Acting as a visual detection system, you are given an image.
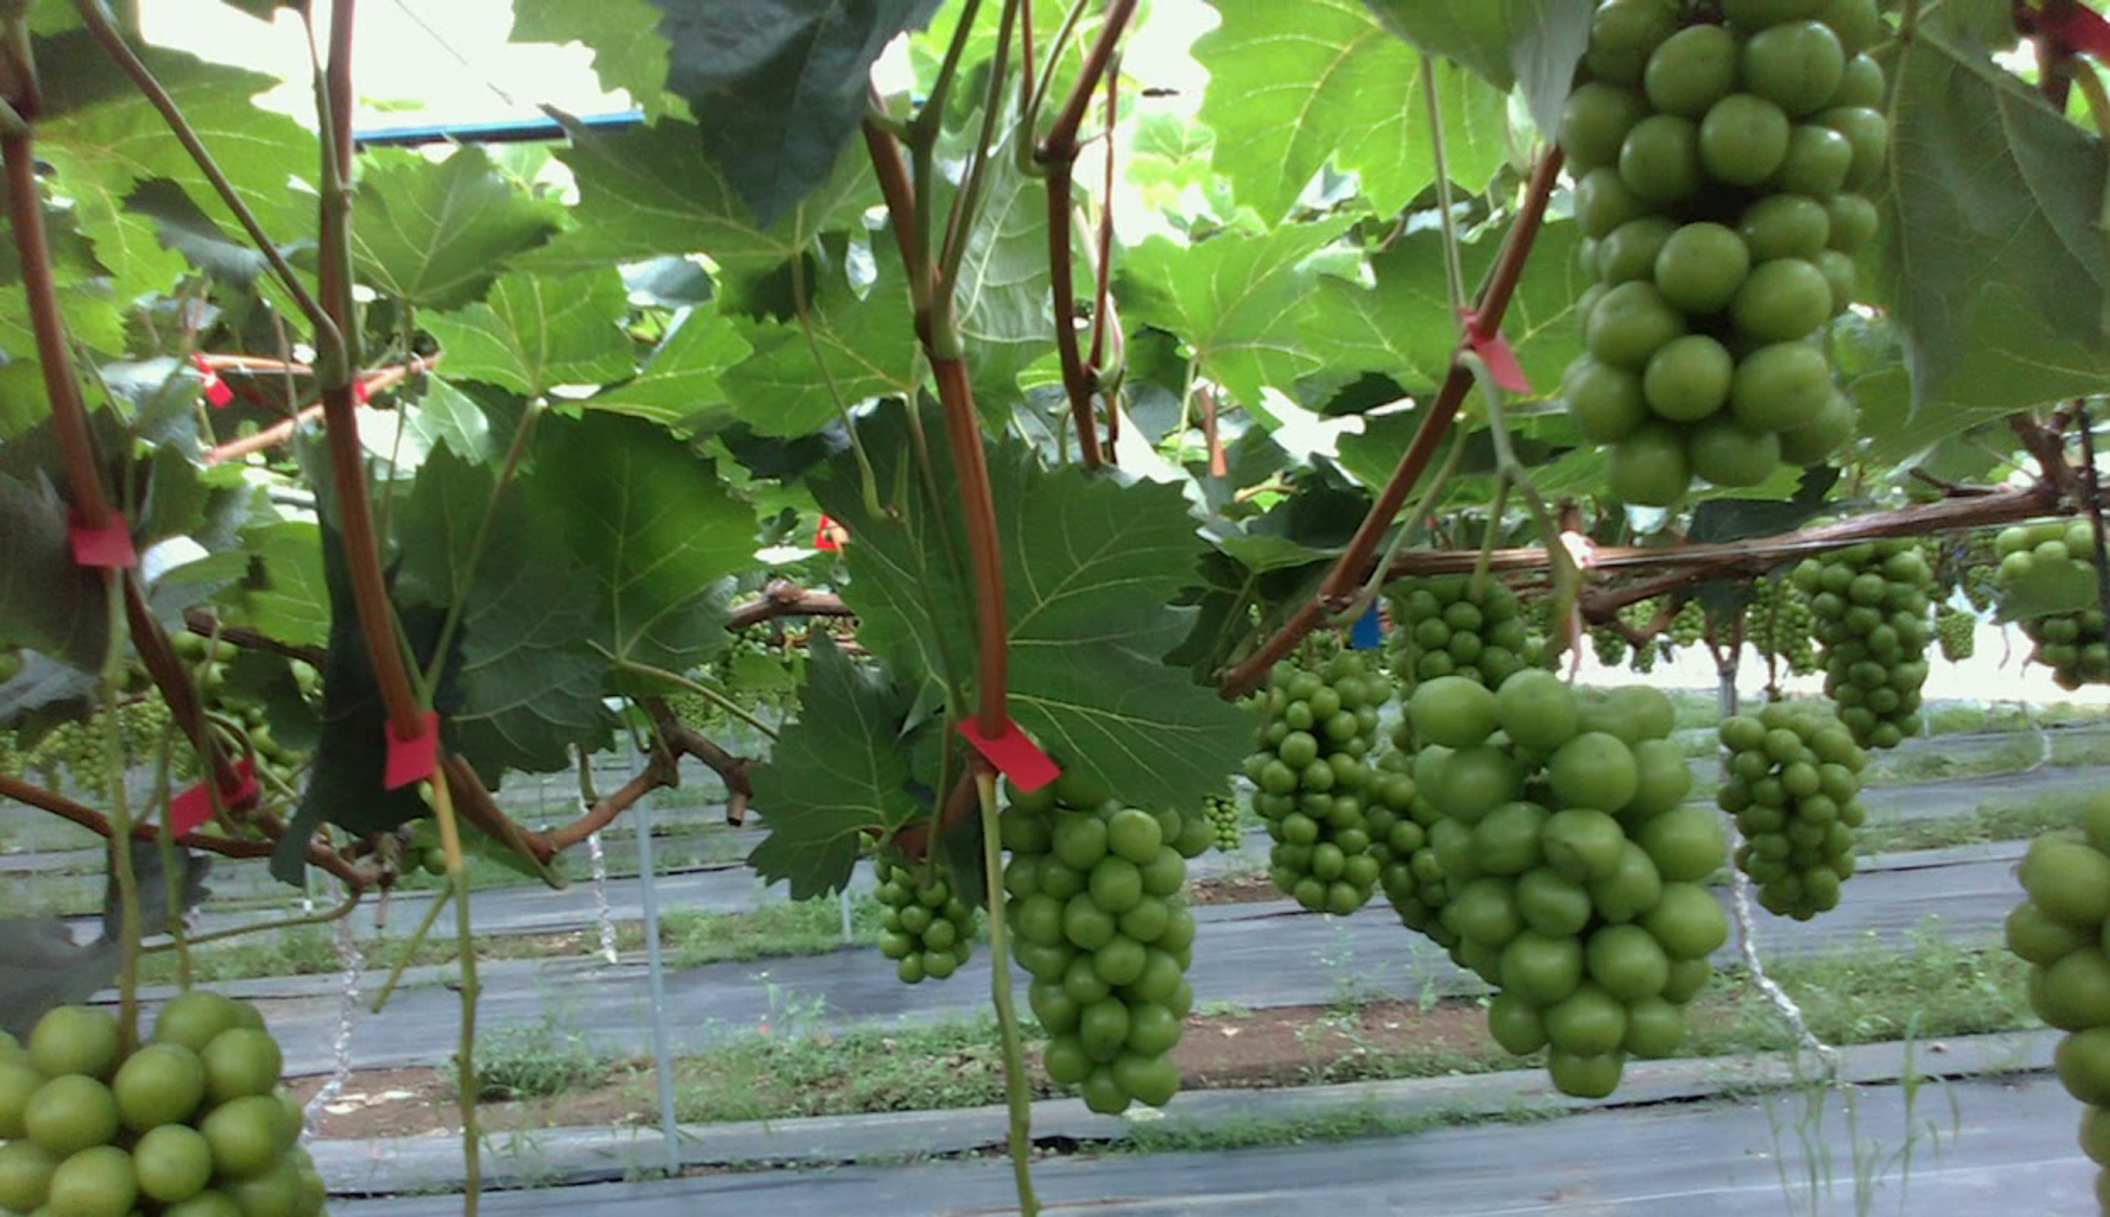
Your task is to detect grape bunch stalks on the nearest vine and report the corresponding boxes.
[91,571,142,1061]
[976,771,1038,1212]
[433,762,482,1192]
[1456,350,1588,673]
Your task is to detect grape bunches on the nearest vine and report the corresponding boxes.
[1555,0,1889,507]
[0,989,326,1215]
[1405,668,1726,1100]
[998,771,1216,1114]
